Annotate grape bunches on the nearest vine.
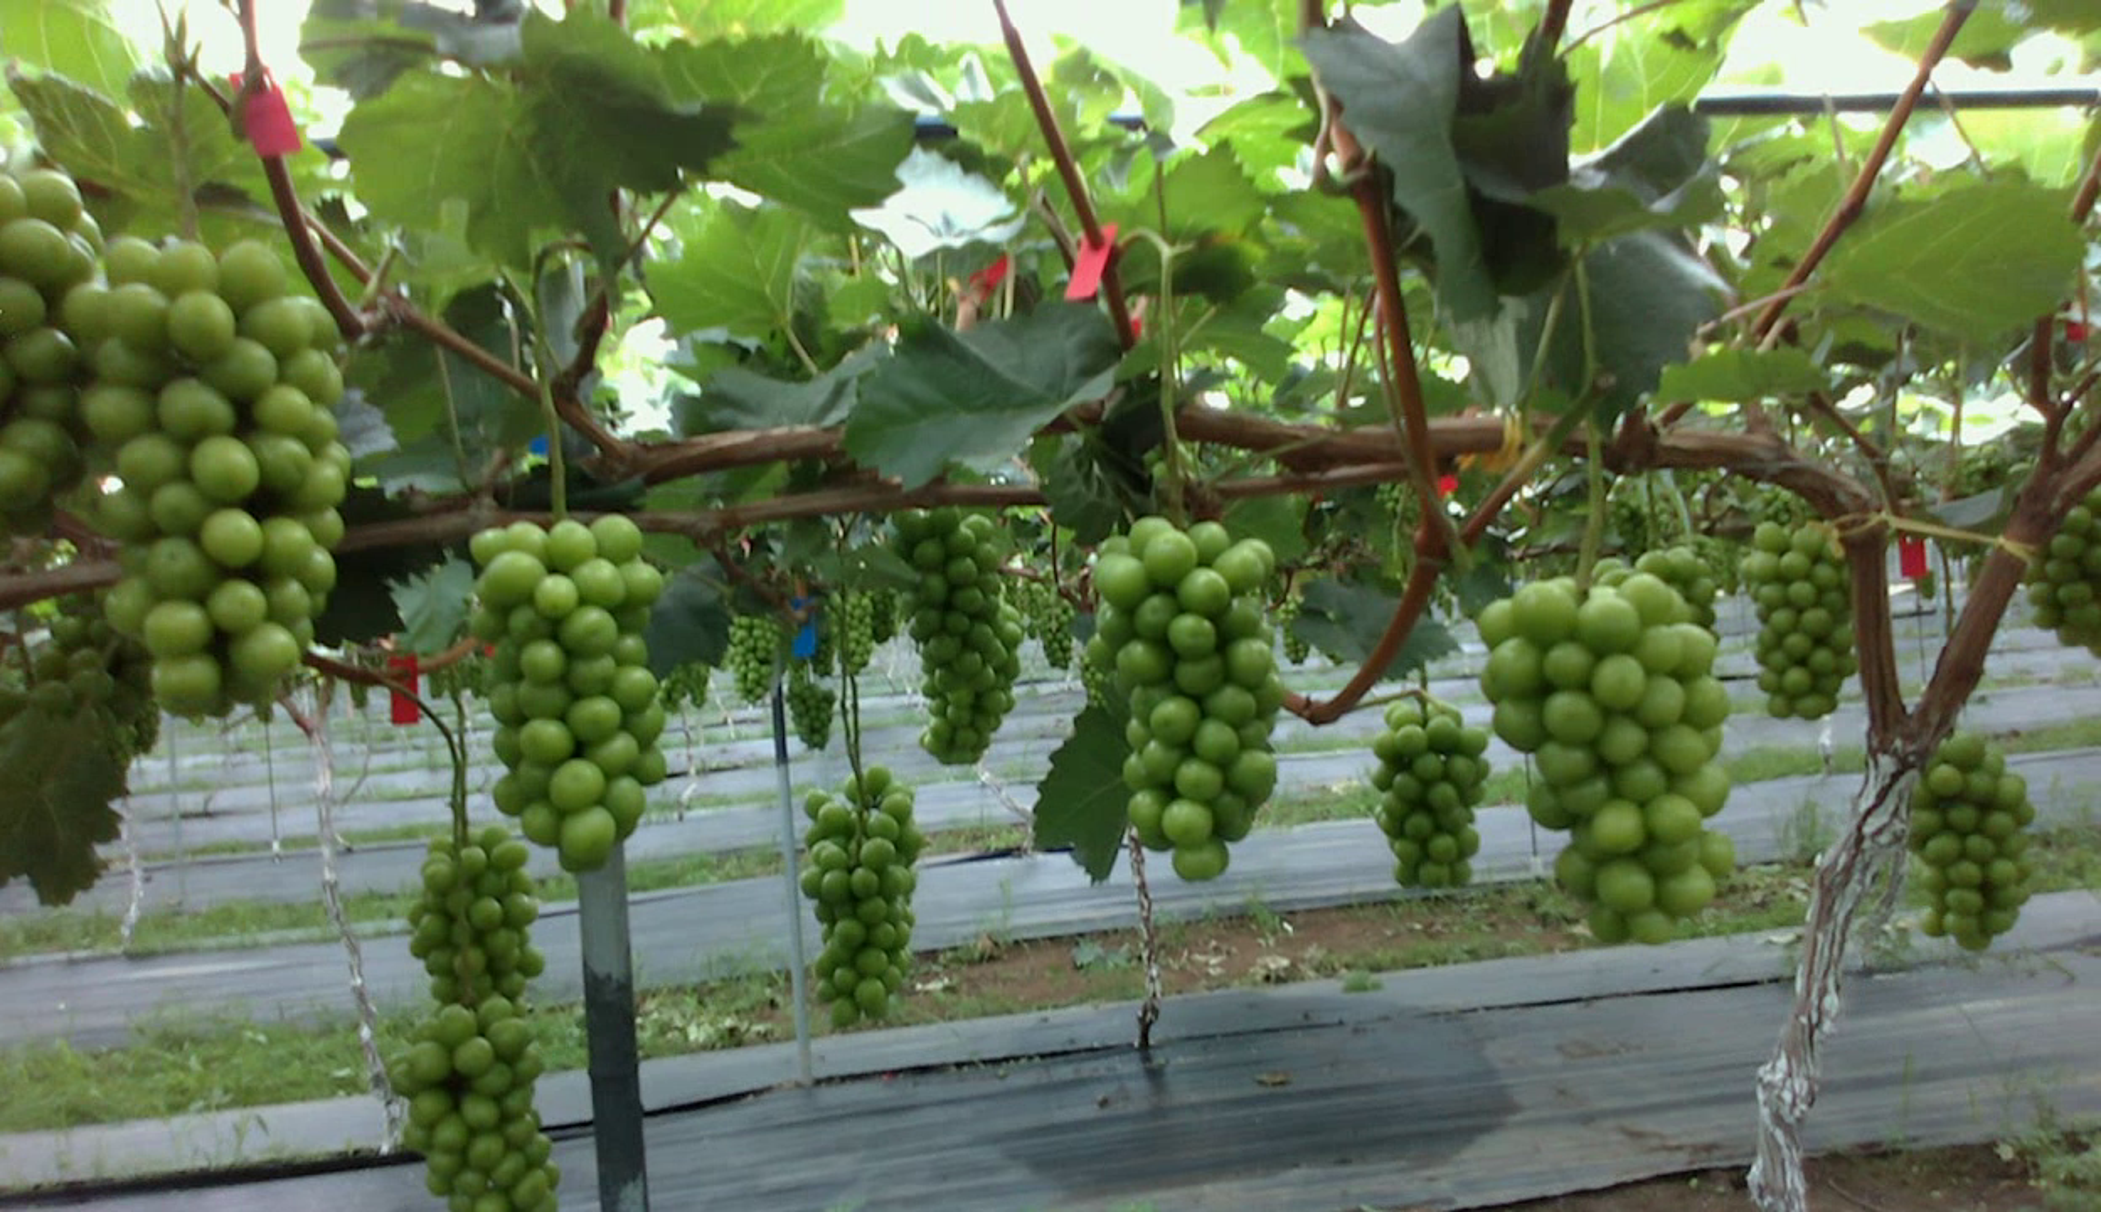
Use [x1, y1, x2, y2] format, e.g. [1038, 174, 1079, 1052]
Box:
[62, 236, 347, 715]
[470, 513, 665, 869]
[1476, 574, 1736, 944]
[0, 168, 101, 534]
[1089, 515, 1281, 879]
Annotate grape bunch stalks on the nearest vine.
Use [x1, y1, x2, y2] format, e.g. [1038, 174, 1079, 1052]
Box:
[529, 239, 594, 524]
[1572, 259, 1606, 596]
[1108, 229, 1183, 530]
[157, 8, 195, 241]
